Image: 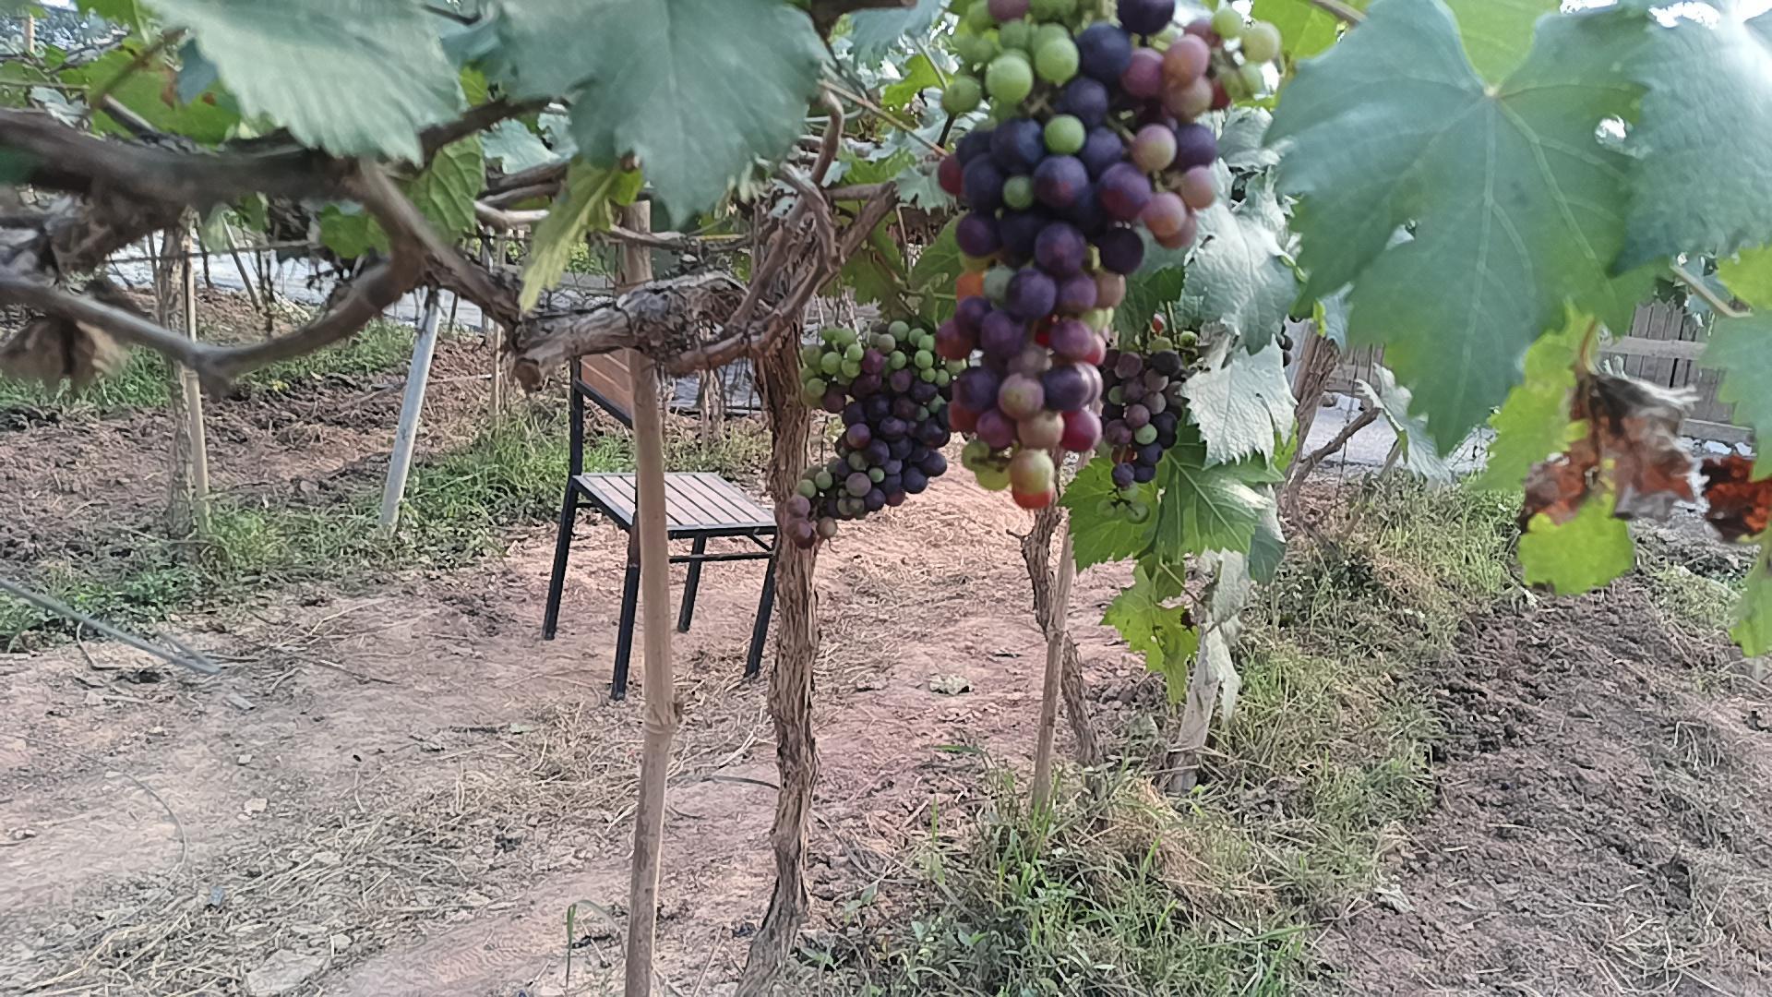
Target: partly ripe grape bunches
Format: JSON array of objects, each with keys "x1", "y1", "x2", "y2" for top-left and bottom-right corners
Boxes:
[
  {"x1": 1101, "y1": 350, "x2": 1189, "y2": 497},
  {"x1": 779, "y1": 320, "x2": 953, "y2": 545},
  {"x1": 938, "y1": 0, "x2": 1279, "y2": 508}
]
